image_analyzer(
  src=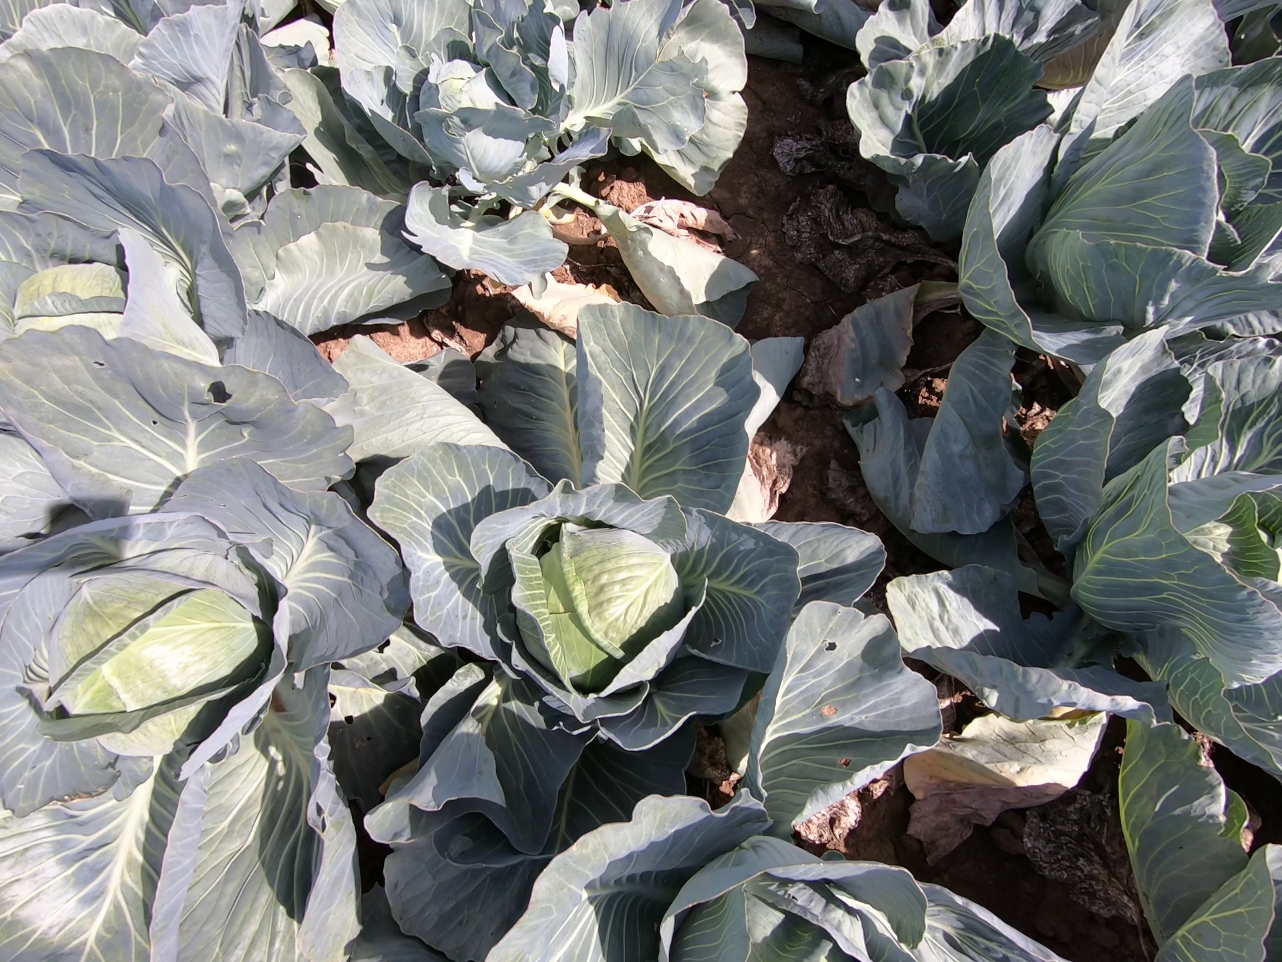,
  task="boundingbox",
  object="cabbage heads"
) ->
[51,556,270,752]
[11,263,160,374]
[676,849,872,960]
[417,58,520,164]
[1046,170,1228,305]
[1104,504,1280,629]
[518,530,680,687]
